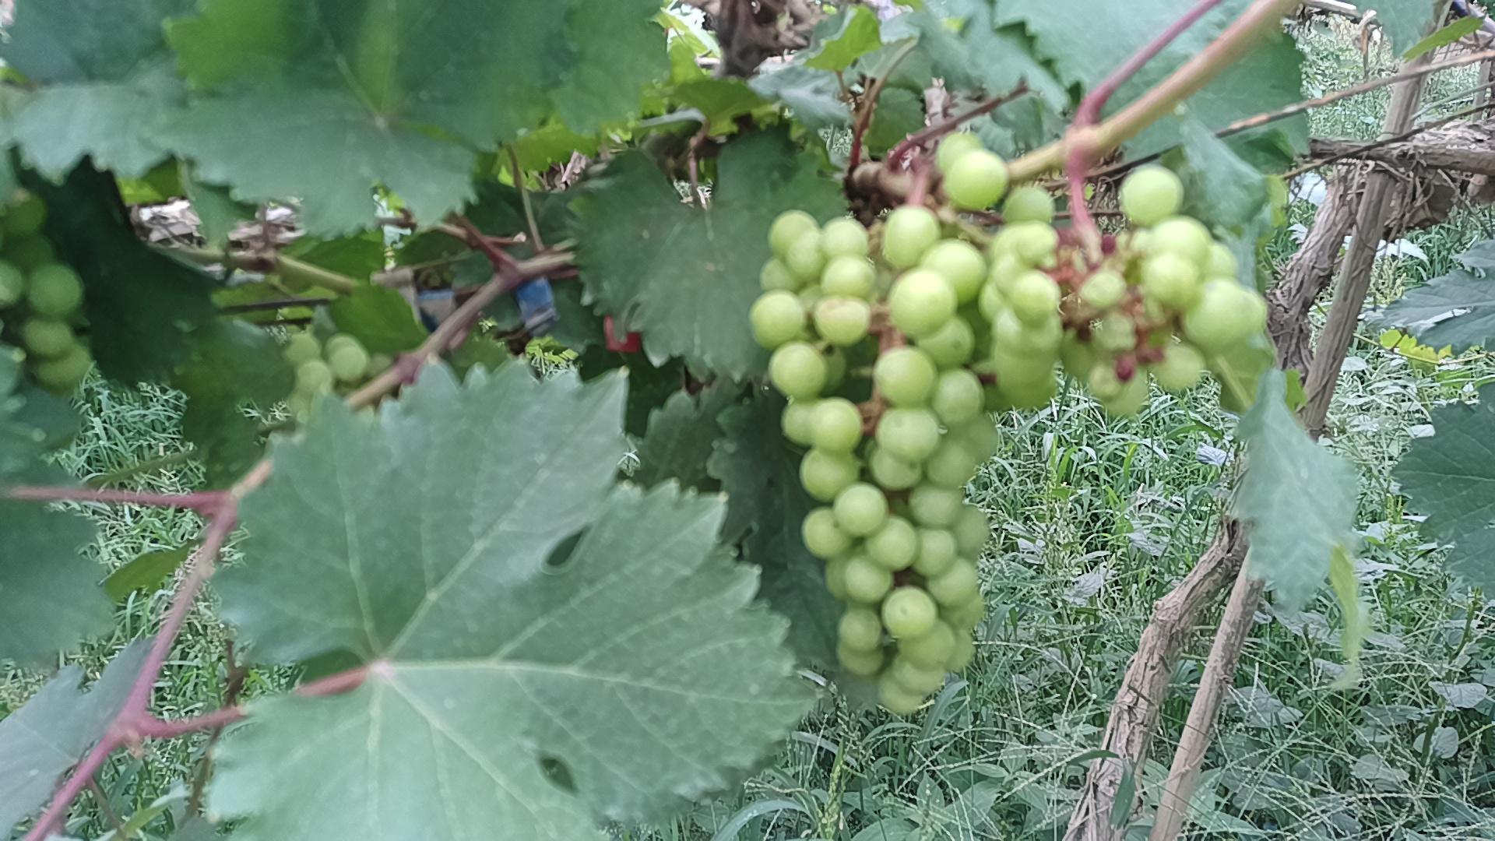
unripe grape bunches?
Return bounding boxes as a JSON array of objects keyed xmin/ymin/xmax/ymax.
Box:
[
  {"xmin": 283, "ymin": 331, "xmax": 370, "ymax": 412},
  {"xmin": 750, "ymin": 133, "xmax": 1270, "ymax": 698},
  {"xmin": 0, "ymin": 188, "xmax": 94, "ymax": 396}
]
